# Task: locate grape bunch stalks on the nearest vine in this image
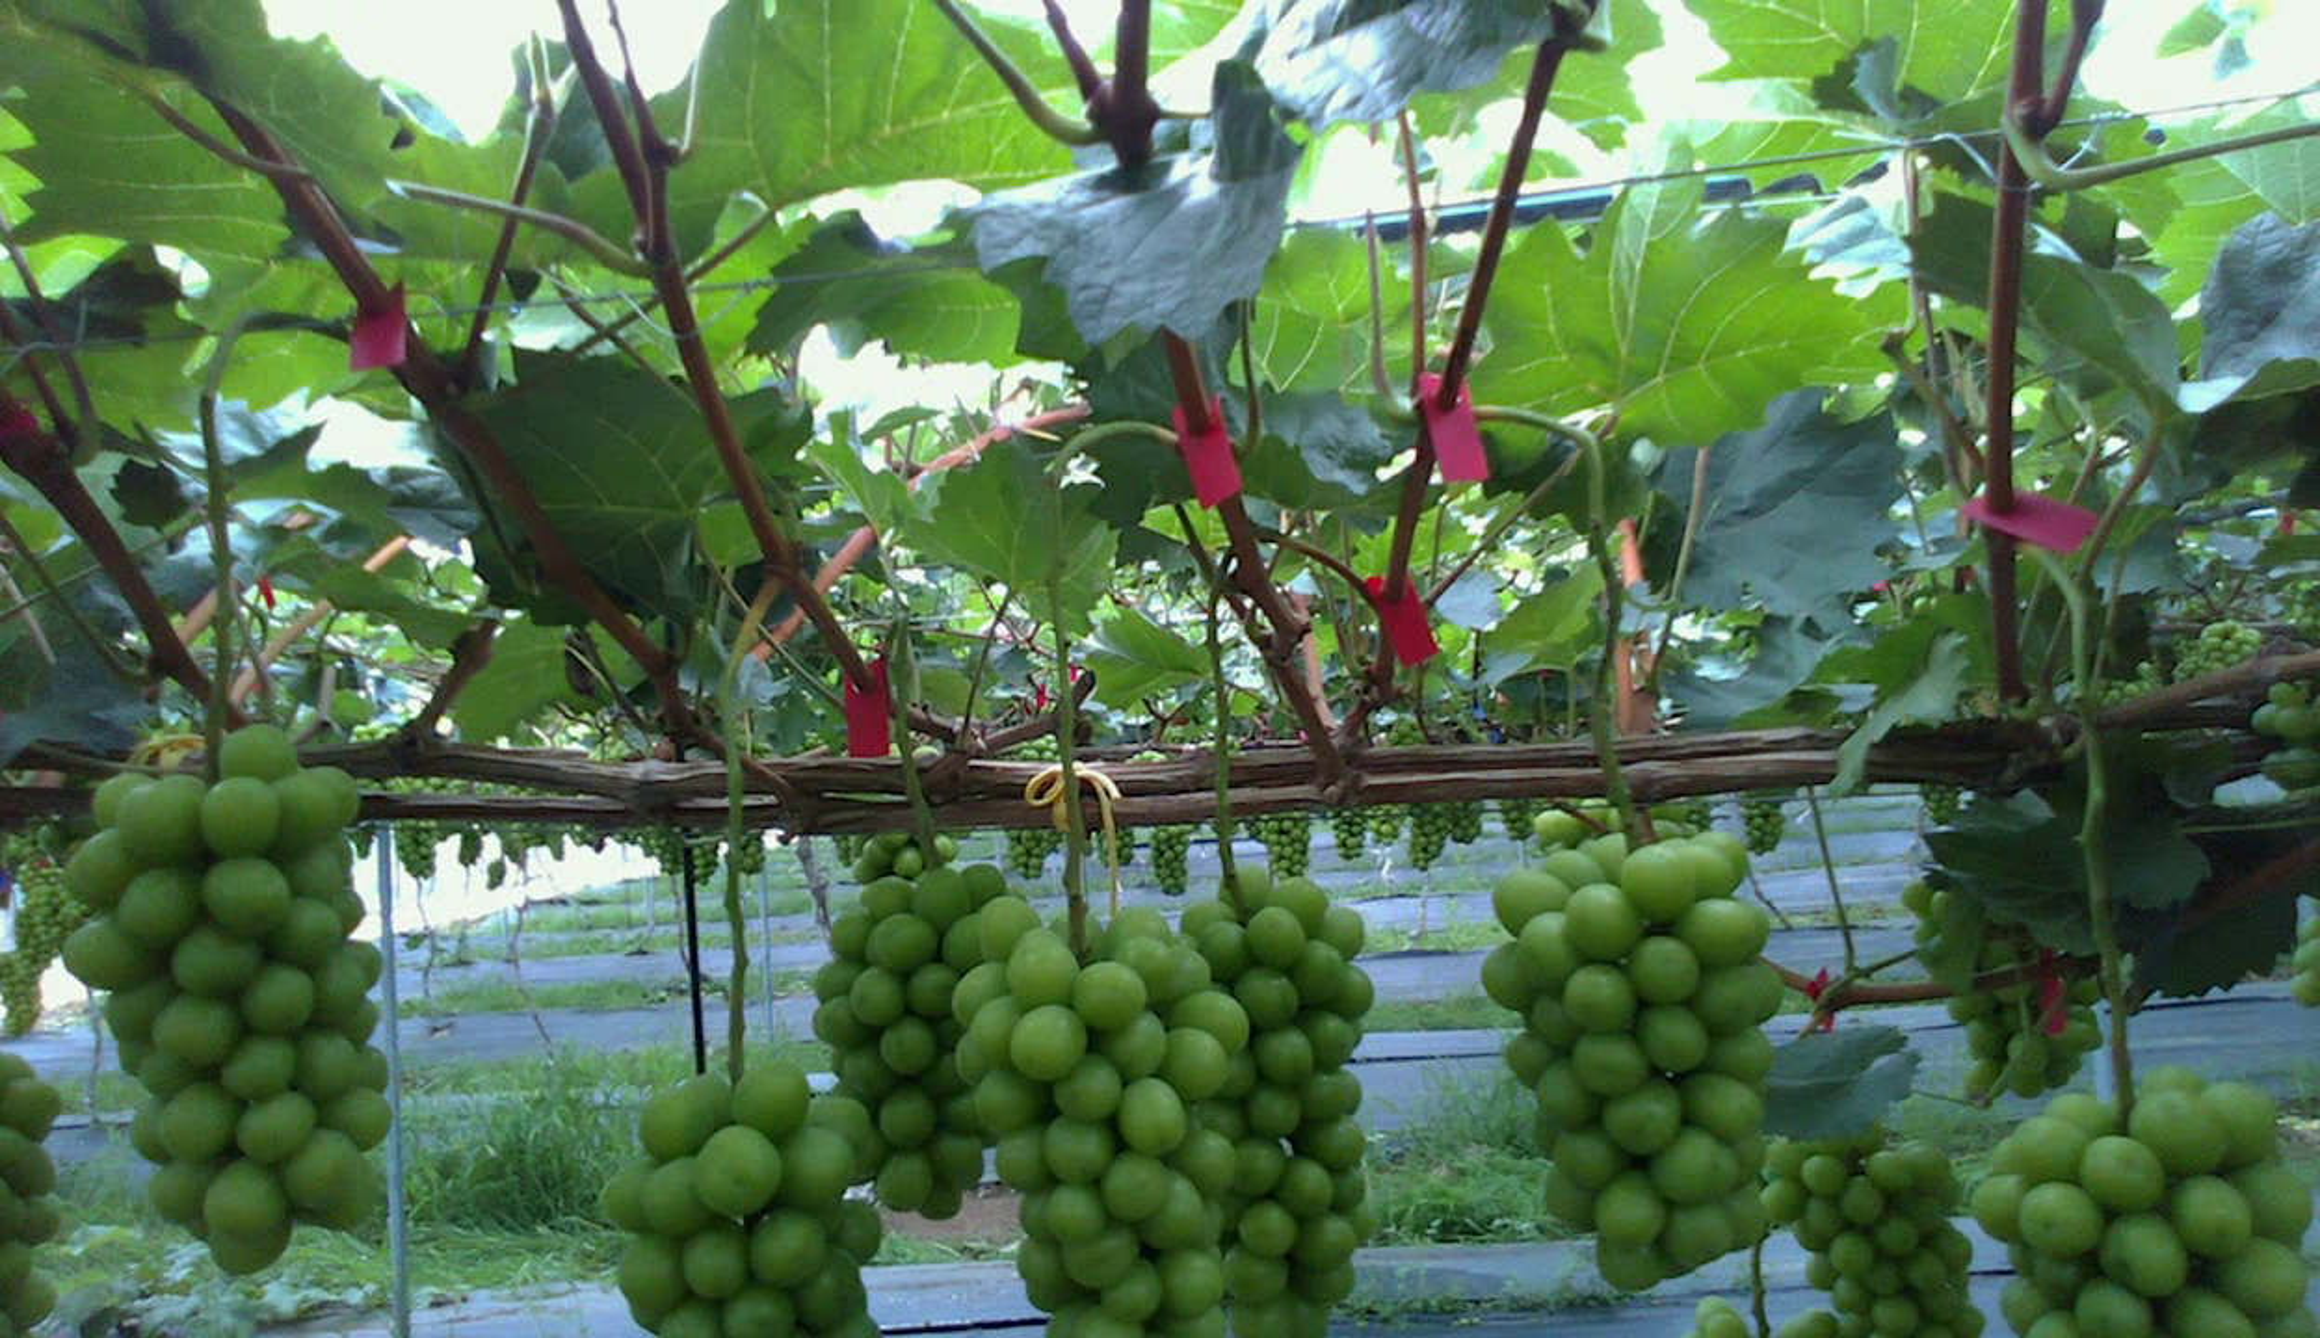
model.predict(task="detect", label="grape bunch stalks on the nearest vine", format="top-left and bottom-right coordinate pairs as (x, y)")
top-left (2034, 546), bottom-right (2132, 1132)
top-left (1054, 626), bottom-right (1087, 959)
top-left (1474, 407), bottom-right (1640, 849)
top-left (721, 595), bottom-right (773, 1080)
top-left (199, 310), bottom-right (297, 782)
top-left (1205, 557), bottom-right (1249, 922)
top-left (889, 613), bottom-right (941, 870)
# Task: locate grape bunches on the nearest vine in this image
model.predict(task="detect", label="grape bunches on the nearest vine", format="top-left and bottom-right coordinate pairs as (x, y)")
top-left (1971, 1067), bottom-right (2316, 1336)
top-left (602, 1050), bottom-right (883, 1336)
top-left (1182, 866), bottom-right (1377, 1336)
top-left (950, 894), bottom-right (1246, 1334)
top-left (807, 860), bottom-right (1002, 1225)
top-left (1482, 821), bottom-right (1781, 1299)
top-left (61, 721), bottom-right (392, 1277)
